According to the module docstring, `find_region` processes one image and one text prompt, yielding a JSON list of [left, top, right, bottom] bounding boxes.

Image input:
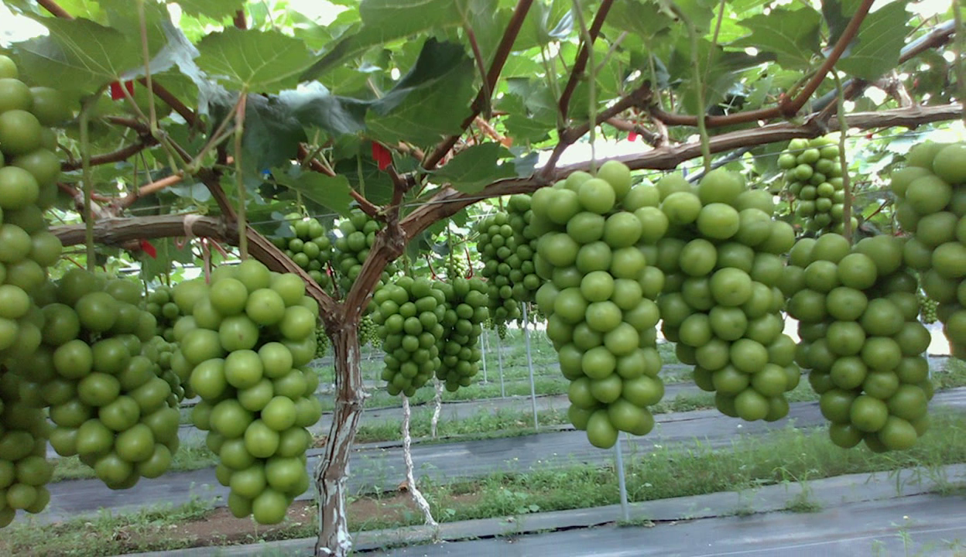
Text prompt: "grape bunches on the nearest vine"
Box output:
[[15, 268, 181, 489], [168, 259, 322, 526], [654, 167, 801, 423], [528, 159, 667, 449], [889, 137, 965, 361], [779, 232, 933, 453], [0, 55, 74, 526]]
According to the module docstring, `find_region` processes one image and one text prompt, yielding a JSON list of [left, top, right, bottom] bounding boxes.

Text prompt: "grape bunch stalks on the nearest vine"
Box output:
[[829, 66, 854, 246], [77, 86, 105, 271], [573, 1, 595, 176], [234, 94, 248, 261], [953, 1, 965, 125], [668, 2, 711, 173]]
